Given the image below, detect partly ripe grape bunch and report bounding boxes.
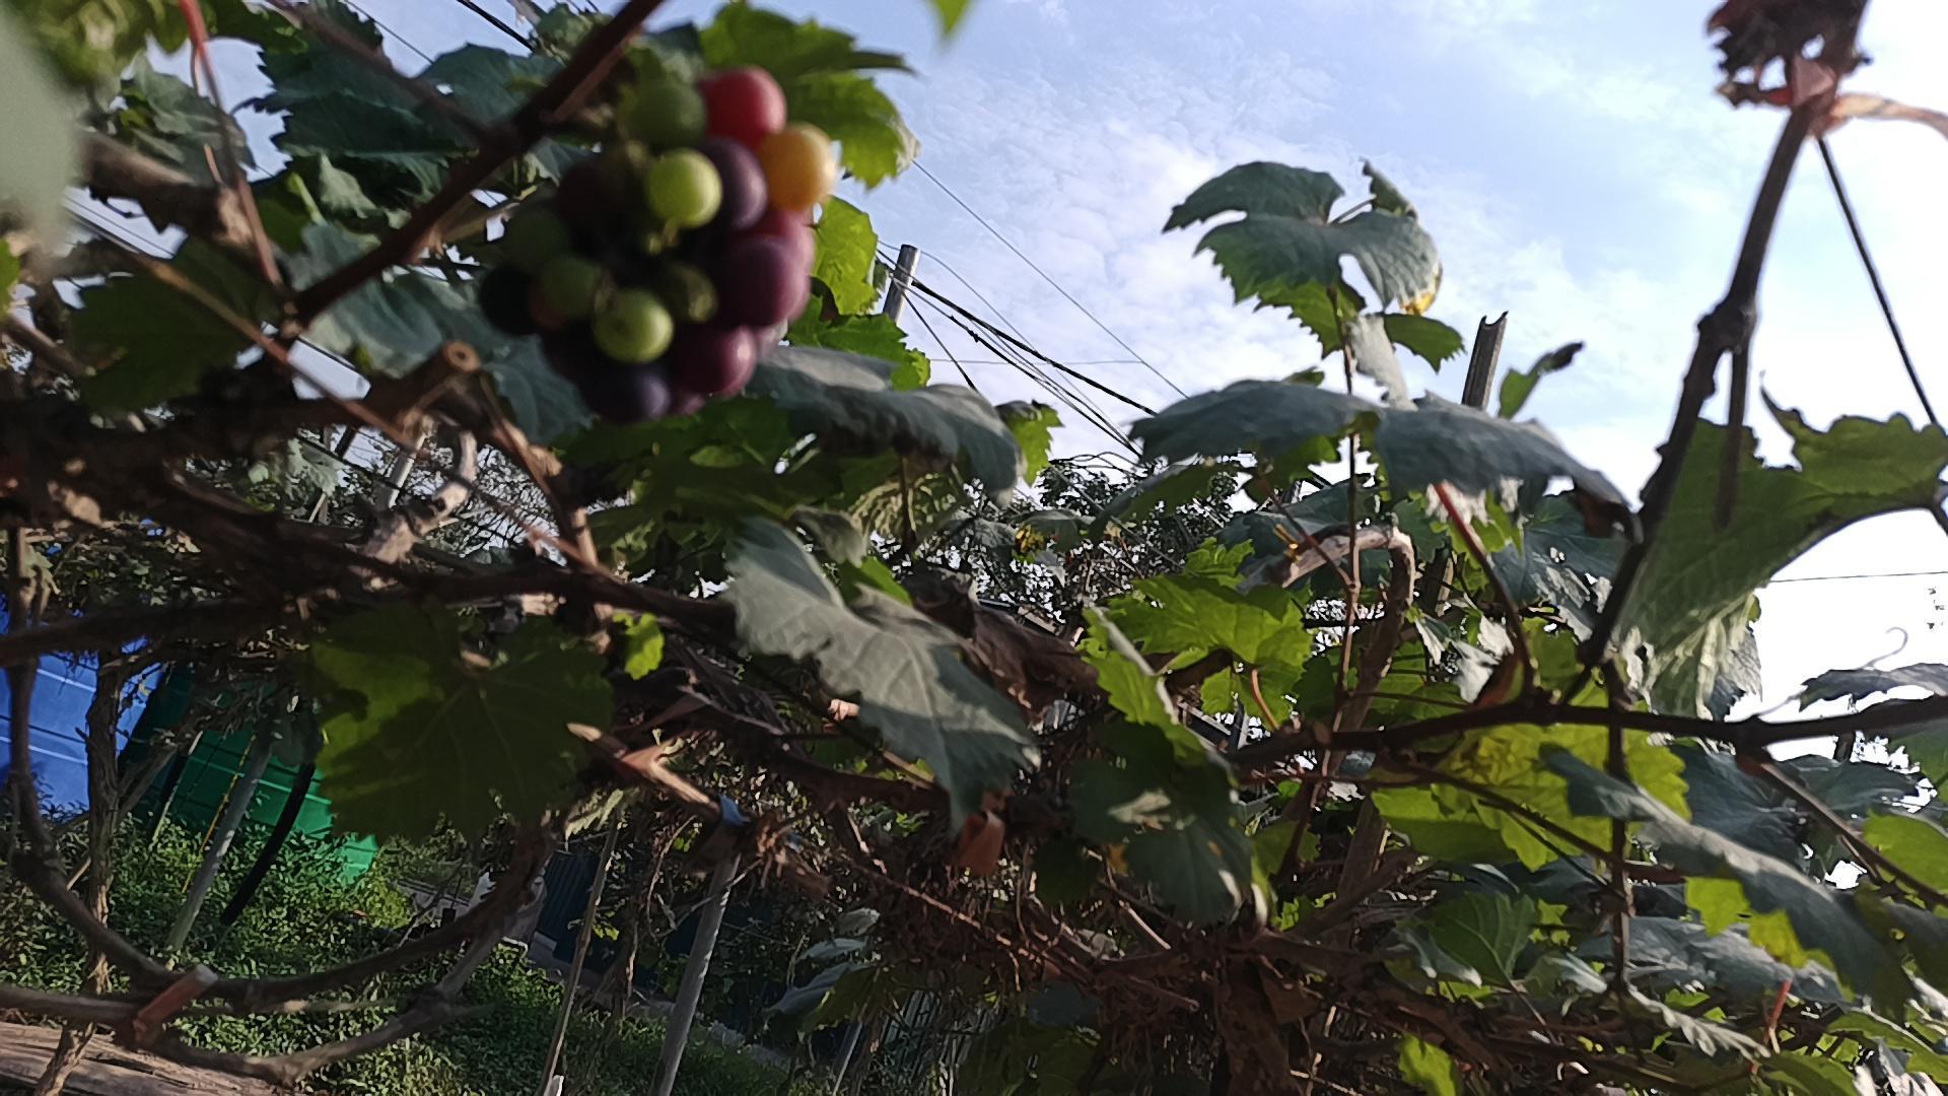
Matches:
[479,48,839,423]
